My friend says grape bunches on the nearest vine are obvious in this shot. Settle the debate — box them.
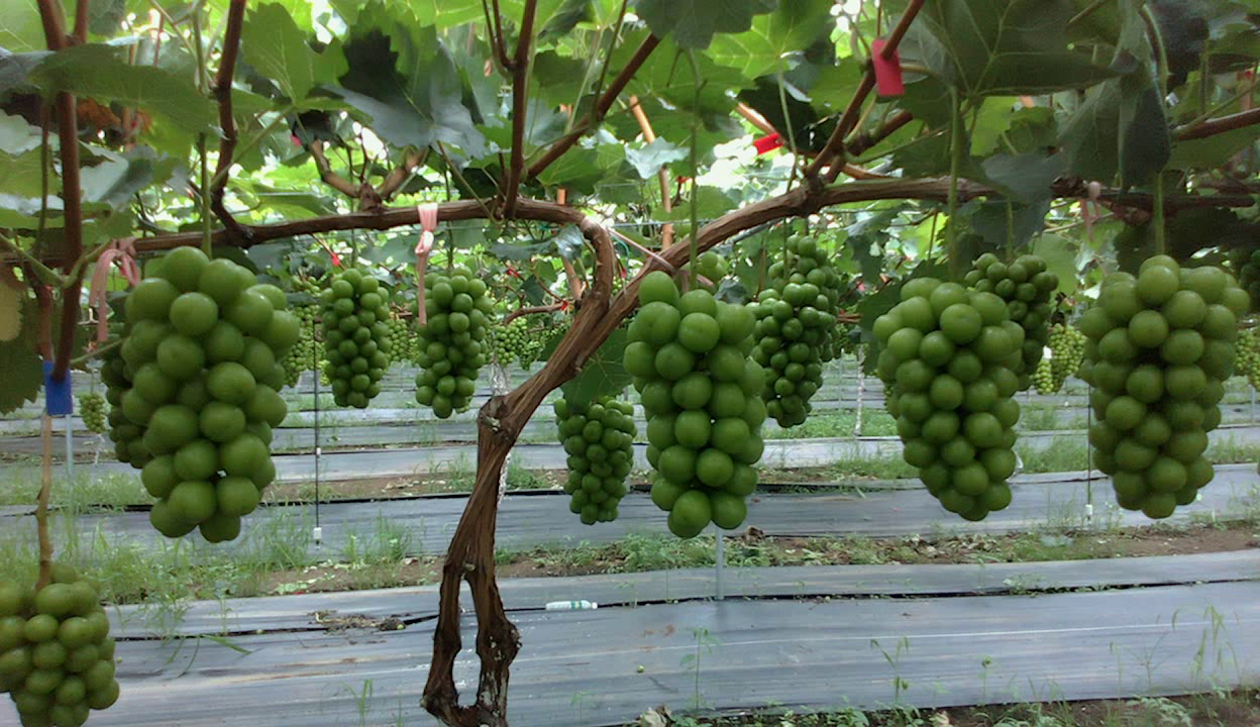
[120,246,301,544]
[1079,253,1250,519]
[0,562,119,726]
[622,271,767,538]
[873,277,1025,522]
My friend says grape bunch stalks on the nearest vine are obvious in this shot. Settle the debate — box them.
[195,133,212,257]
[34,408,52,593]
[685,48,708,262]
[902,63,961,282]
[1151,172,1165,255]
